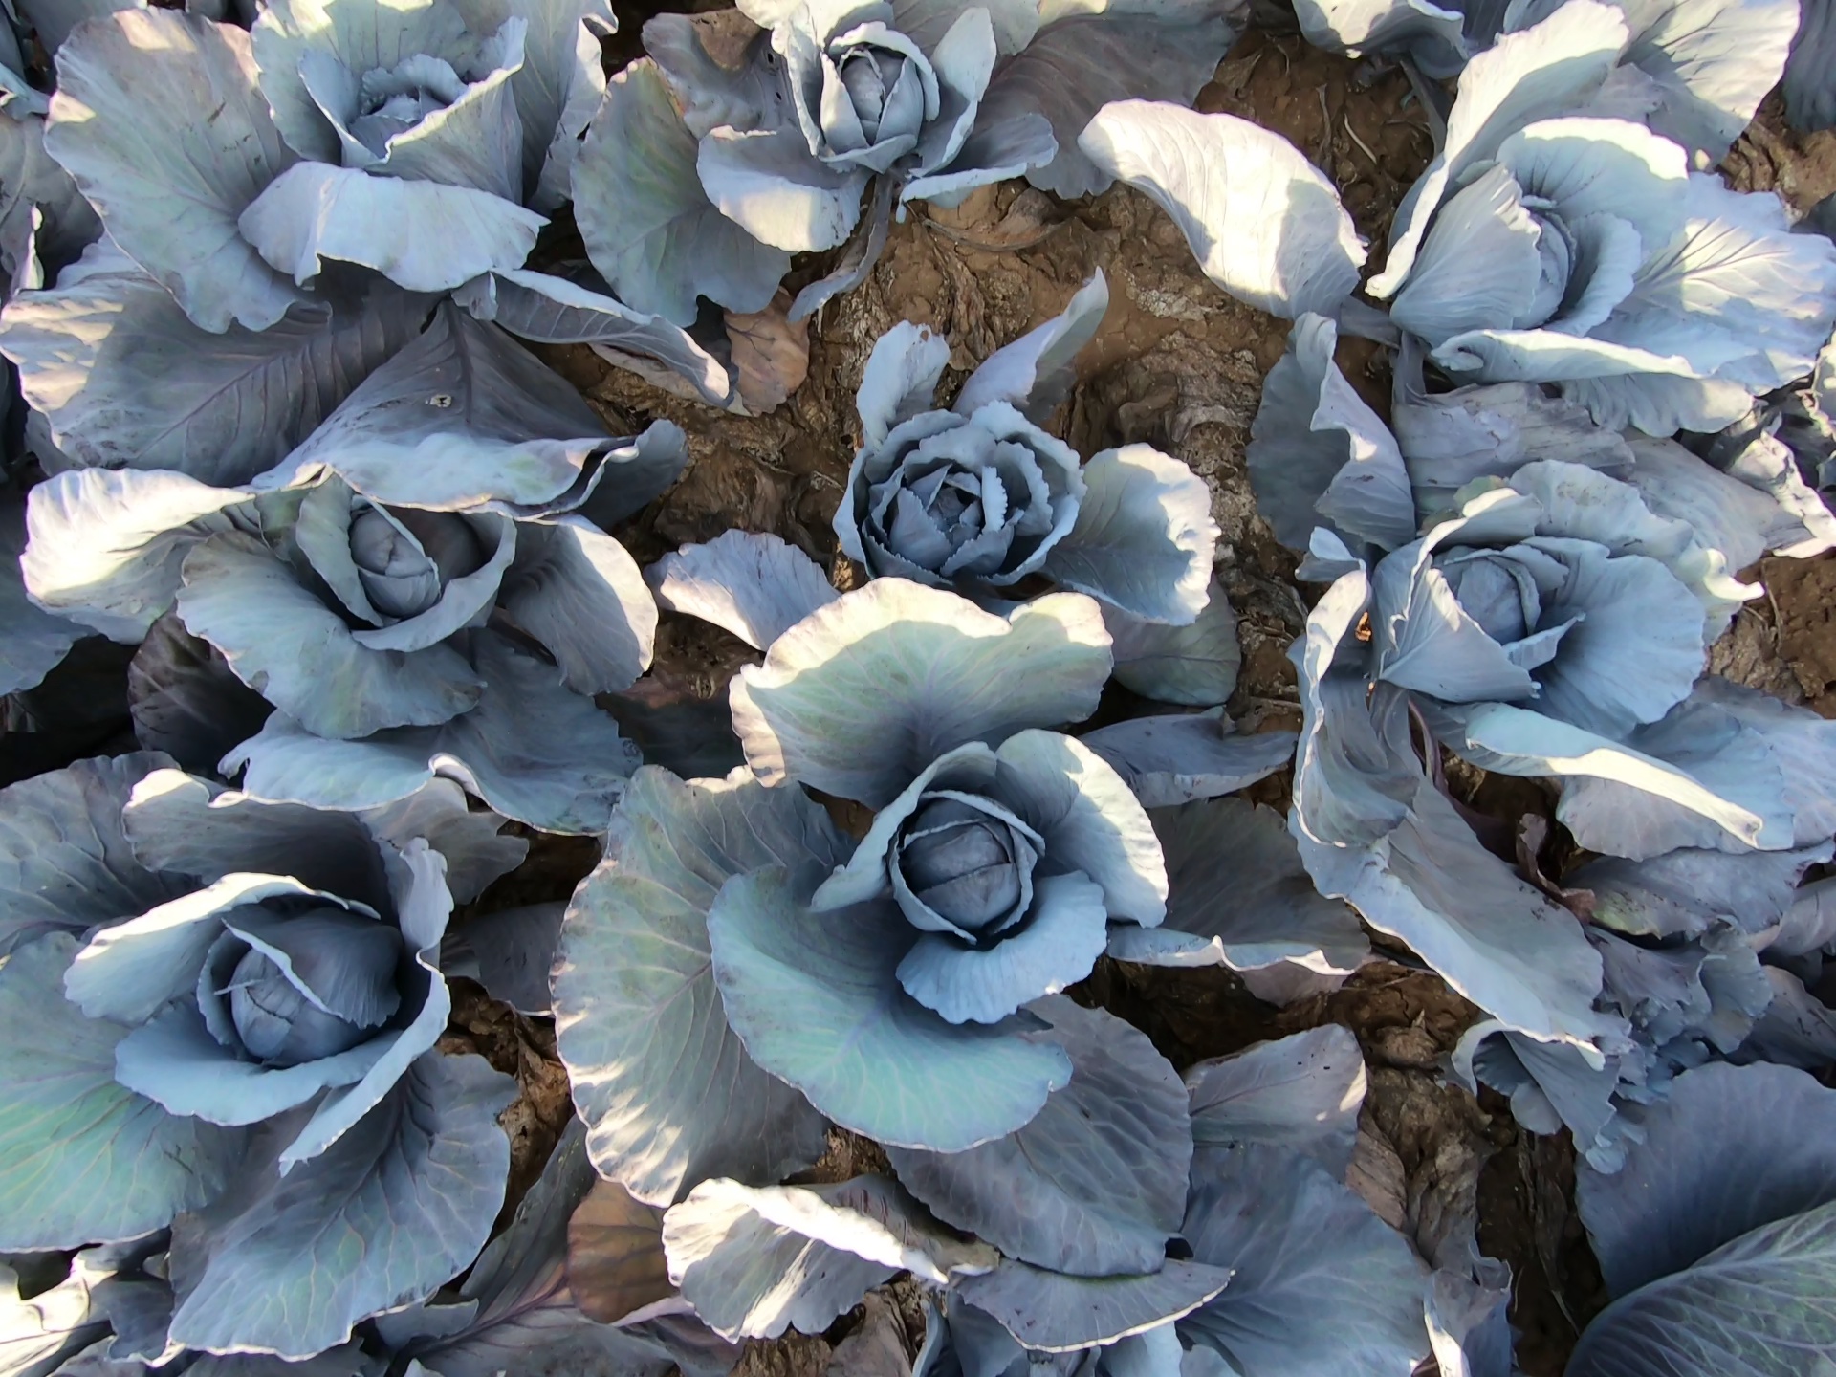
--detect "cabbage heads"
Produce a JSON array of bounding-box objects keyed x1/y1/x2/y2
[
  {"x1": 956, "y1": 1246, "x2": 1086, "y2": 1374},
  {"x1": 833, "y1": 51, "x2": 928, "y2": 159},
  {"x1": 343, "y1": 91, "x2": 490, "y2": 216},
  {"x1": 329, "y1": 501, "x2": 492, "y2": 617},
  {"x1": 903, "y1": 479, "x2": 973, "y2": 562},
  {"x1": 1412, "y1": 554, "x2": 1542, "y2": 674},
  {"x1": 228, "y1": 916, "x2": 393, "y2": 1063},
  {"x1": 906, "y1": 799, "x2": 1025, "y2": 924},
  {"x1": 1455, "y1": 208, "x2": 1572, "y2": 332}
]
